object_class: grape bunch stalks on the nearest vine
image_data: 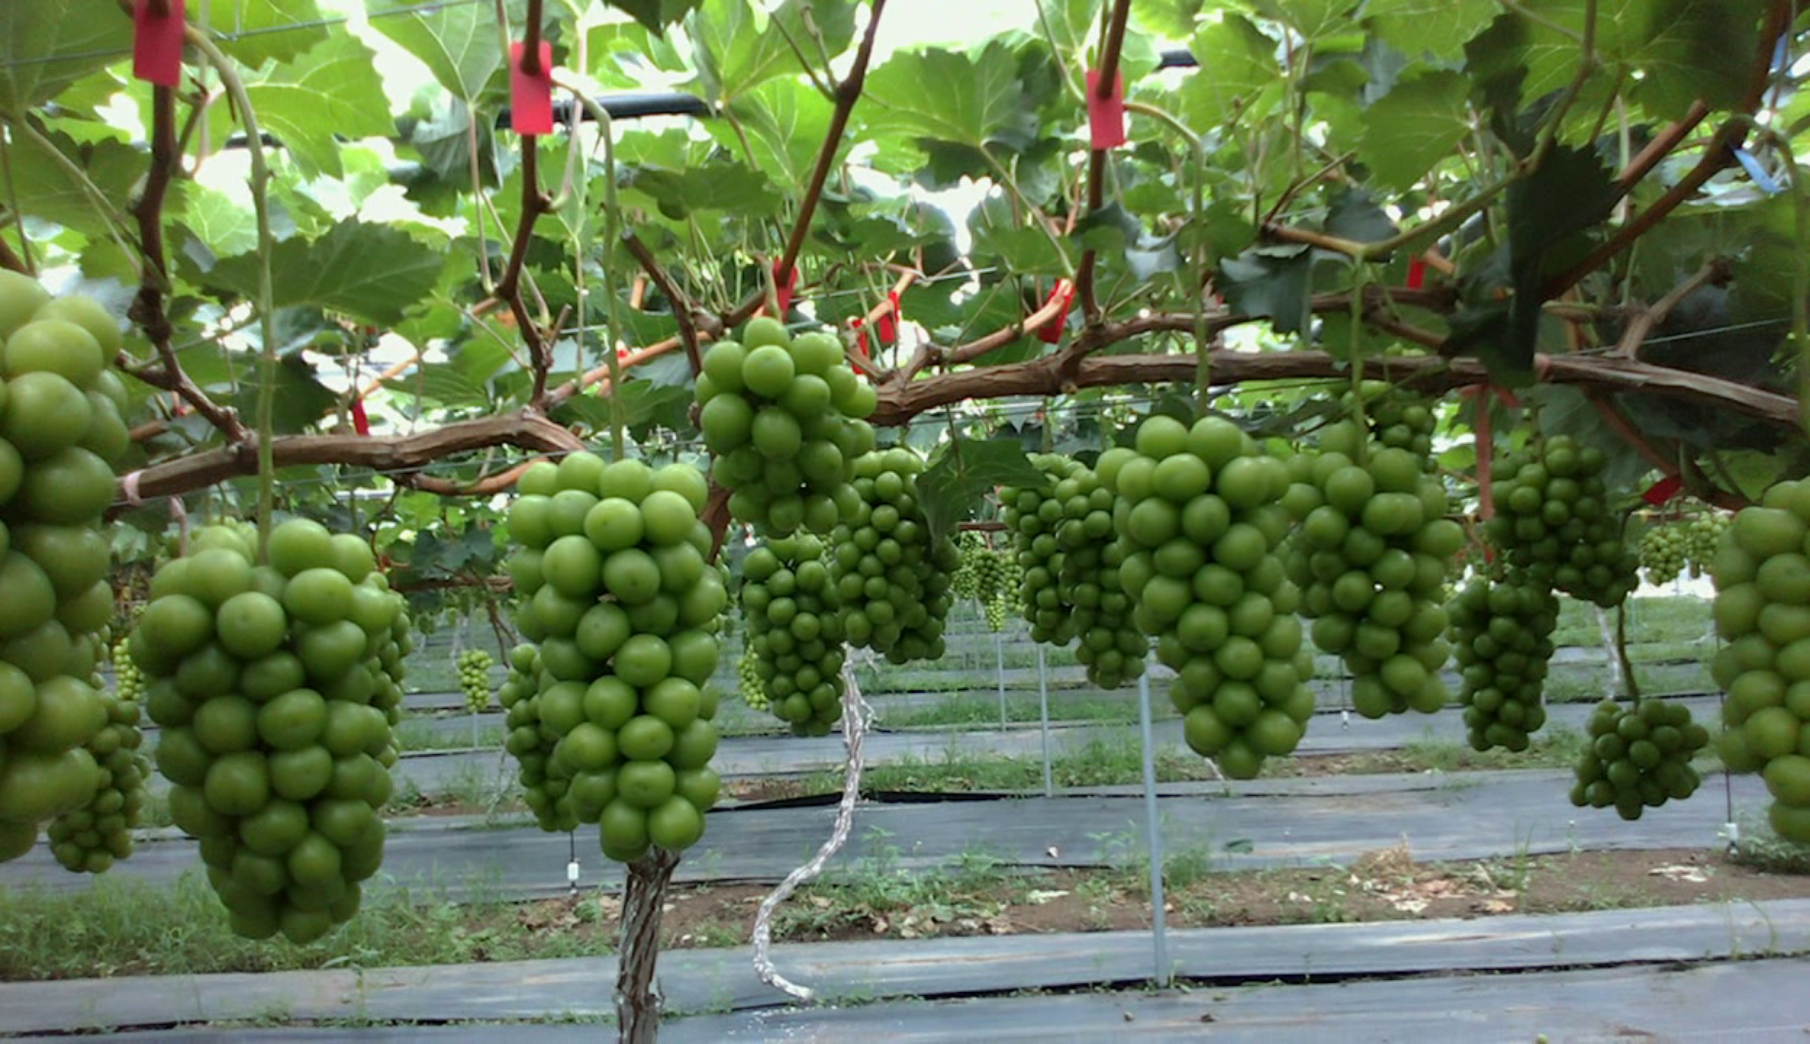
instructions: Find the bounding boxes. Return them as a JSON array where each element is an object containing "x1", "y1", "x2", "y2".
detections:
[
  {"x1": 1278, "y1": 225, "x2": 1369, "y2": 468},
  {"x1": 753, "y1": 254, "x2": 783, "y2": 323},
  {"x1": 553, "y1": 77, "x2": 624, "y2": 463},
  {"x1": 1774, "y1": 136, "x2": 1807, "y2": 428},
  {"x1": 183, "y1": 20, "x2": 274, "y2": 564},
  {"x1": 1124, "y1": 100, "x2": 1211, "y2": 418}
]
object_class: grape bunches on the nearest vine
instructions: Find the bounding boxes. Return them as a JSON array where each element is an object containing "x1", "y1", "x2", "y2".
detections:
[
  {"x1": 1095, "y1": 415, "x2": 1315, "y2": 780},
  {"x1": 508, "y1": 451, "x2": 727, "y2": 863},
  {"x1": 125, "y1": 518, "x2": 403, "y2": 945},
  {"x1": 1710, "y1": 477, "x2": 1807, "y2": 842},
  {"x1": 0, "y1": 267, "x2": 129, "y2": 864},
  {"x1": 693, "y1": 318, "x2": 879, "y2": 541},
  {"x1": 1272, "y1": 420, "x2": 1465, "y2": 719}
]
